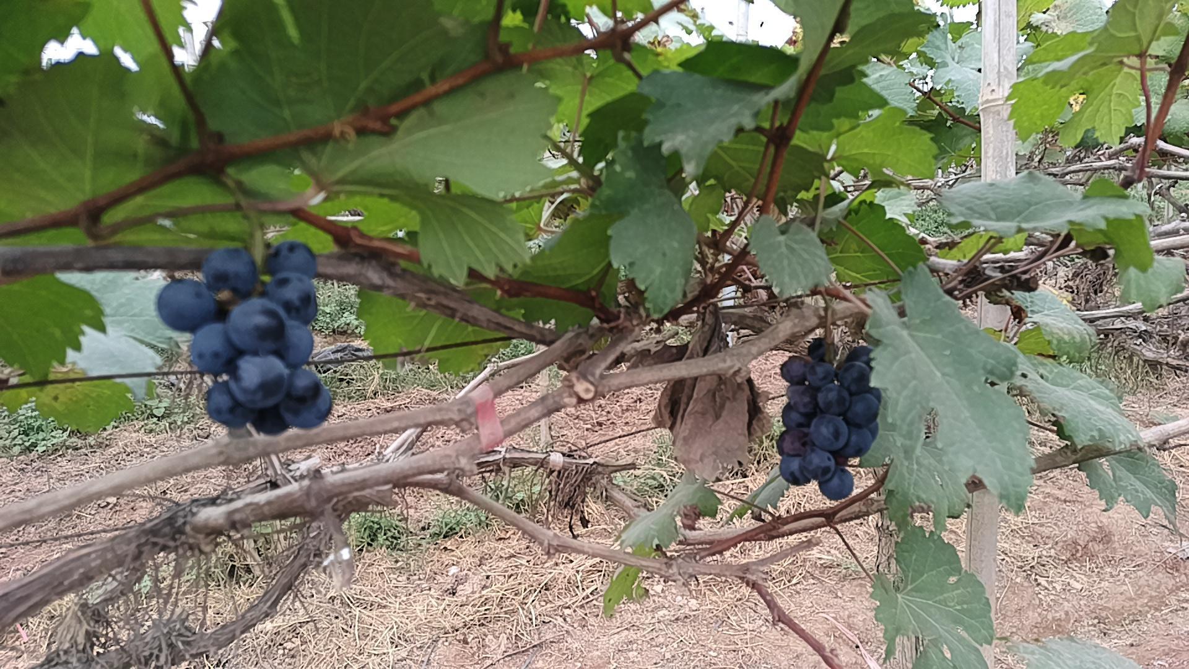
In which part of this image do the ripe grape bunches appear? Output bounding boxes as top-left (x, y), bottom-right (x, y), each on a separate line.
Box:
top-left (157, 241), bottom-right (331, 434)
top-left (777, 339), bottom-right (882, 500)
